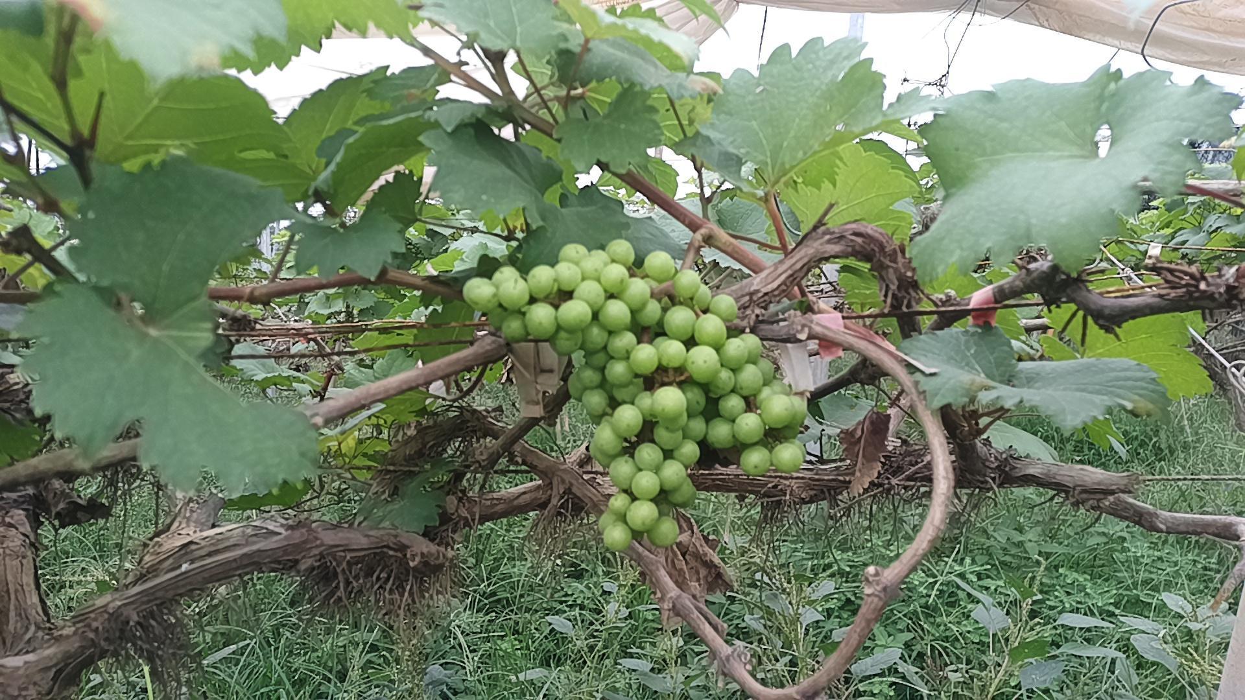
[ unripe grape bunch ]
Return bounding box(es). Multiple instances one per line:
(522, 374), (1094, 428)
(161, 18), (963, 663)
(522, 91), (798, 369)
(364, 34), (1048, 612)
(465, 240), (806, 550)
